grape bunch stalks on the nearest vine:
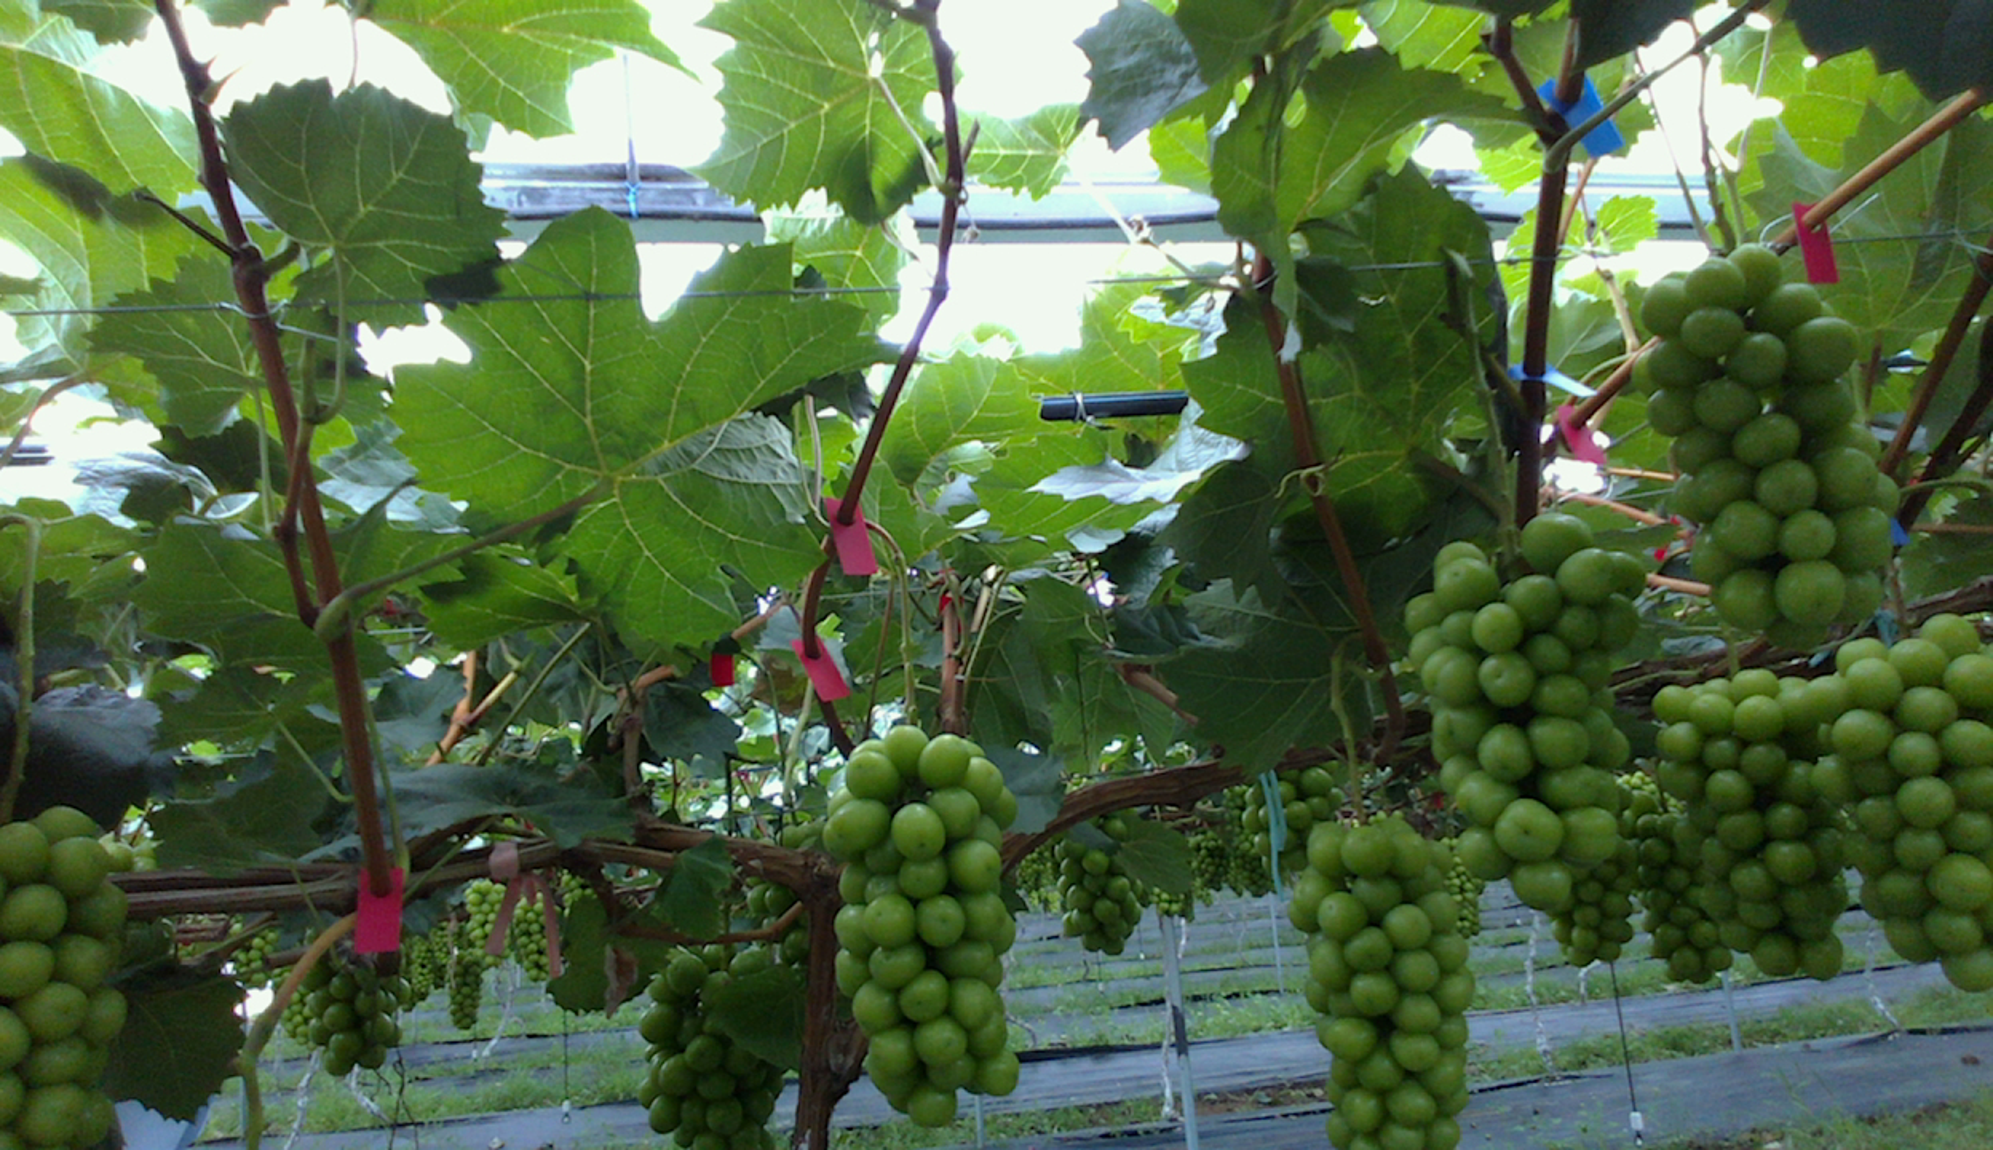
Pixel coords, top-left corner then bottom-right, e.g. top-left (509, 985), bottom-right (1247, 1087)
top-left (0, 513), bottom-right (42, 824)
top-left (1447, 252), bottom-right (1522, 583)
top-left (1884, 561), bottom-right (1912, 640)
top-left (1698, 50), bottom-right (1736, 257)
top-left (867, 521), bottom-right (918, 727)
top-left (1718, 620), bottom-right (1741, 677)
top-left (1329, 632), bottom-right (1369, 824)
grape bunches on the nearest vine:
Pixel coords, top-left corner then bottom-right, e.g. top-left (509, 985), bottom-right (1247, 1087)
top-left (1632, 243), bottom-right (1900, 650)
top-left (1811, 613), bottom-right (1991, 992)
top-left (0, 807), bottom-right (129, 1148)
top-left (1651, 668), bottom-right (1846, 979)
top-left (1287, 818), bottom-right (1477, 1148)
top-left (1404, 513), bottom-right (1648, 912)
top-left (824, 725), bottom-right (1020, 1129)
